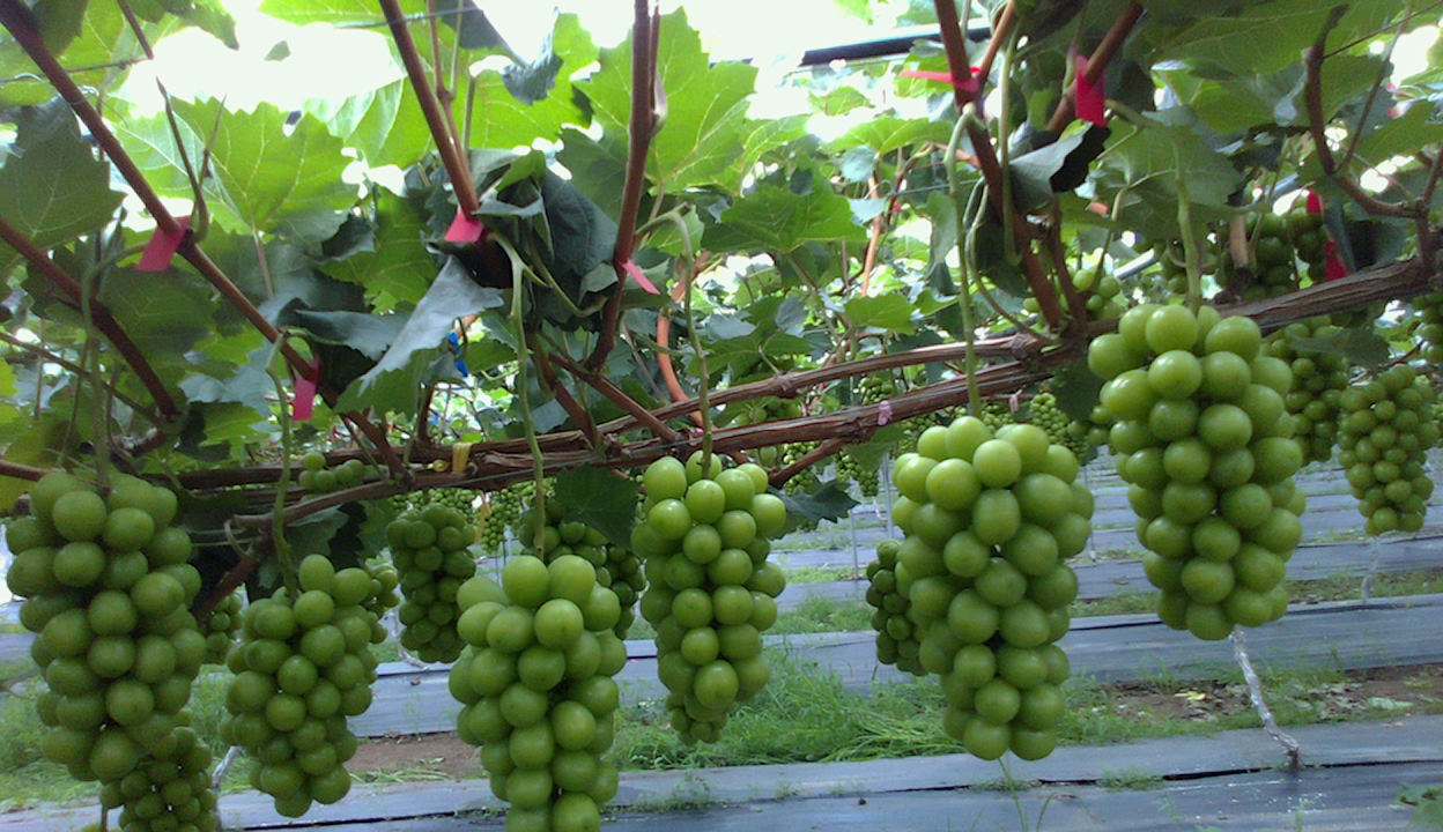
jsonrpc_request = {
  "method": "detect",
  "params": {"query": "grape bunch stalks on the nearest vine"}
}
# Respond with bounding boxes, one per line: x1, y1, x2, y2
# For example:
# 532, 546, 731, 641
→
265, 328, 340, 603
946, 104, 980, 418
632, 210, 712, 480
80, 240, 151, 495
482, 231, 543, 557
1105, 98, 1198, 313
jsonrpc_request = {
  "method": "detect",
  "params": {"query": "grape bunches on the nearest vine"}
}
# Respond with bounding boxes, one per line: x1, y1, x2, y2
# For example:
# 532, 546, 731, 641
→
1087, 303, 1308, 640
631, 450, 786, 721
893, 417, 1094, 760
6, 473, 205, 780
215, 554, 377, 816
451, 555, 626, 830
